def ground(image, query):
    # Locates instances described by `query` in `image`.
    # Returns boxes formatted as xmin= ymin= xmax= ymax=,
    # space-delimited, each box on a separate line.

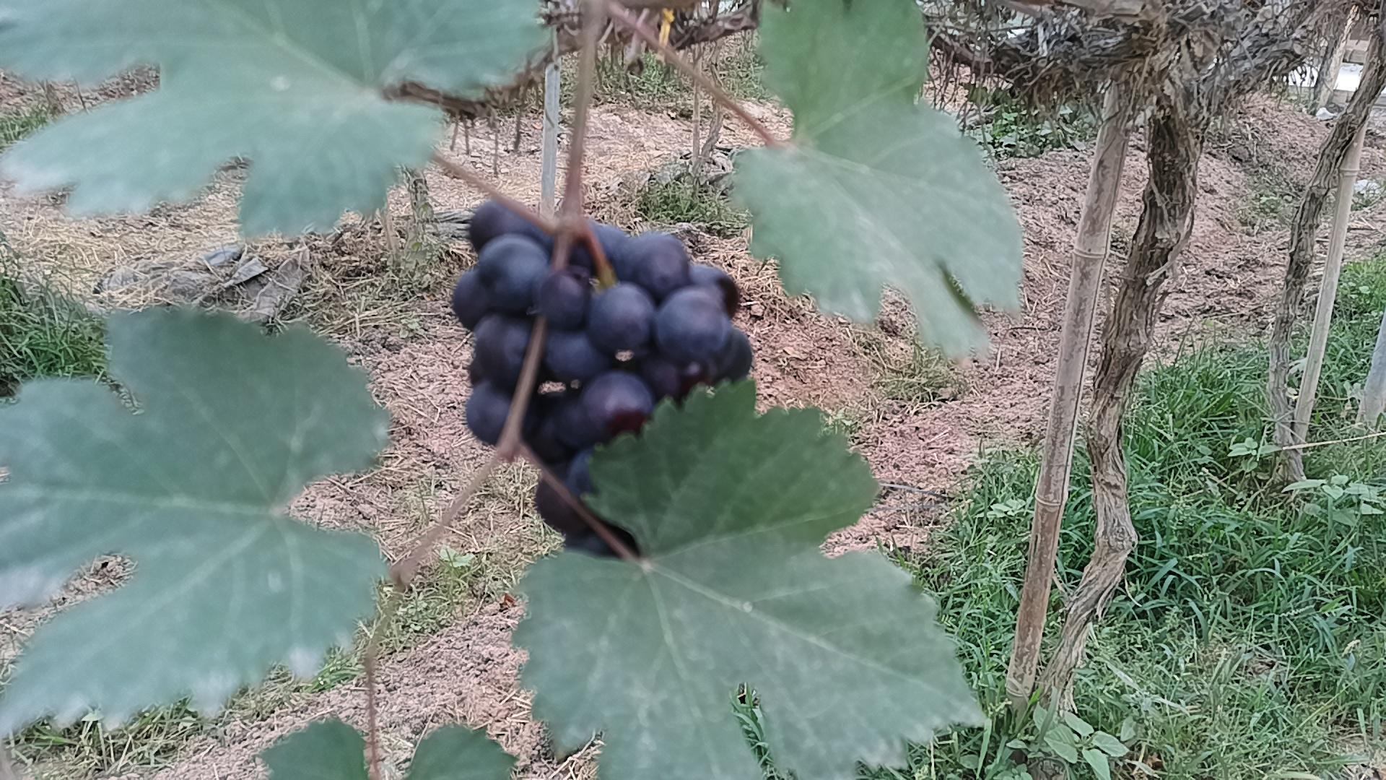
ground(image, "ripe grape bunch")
xmin=453 ymin=200 xmax=751 ymax=555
